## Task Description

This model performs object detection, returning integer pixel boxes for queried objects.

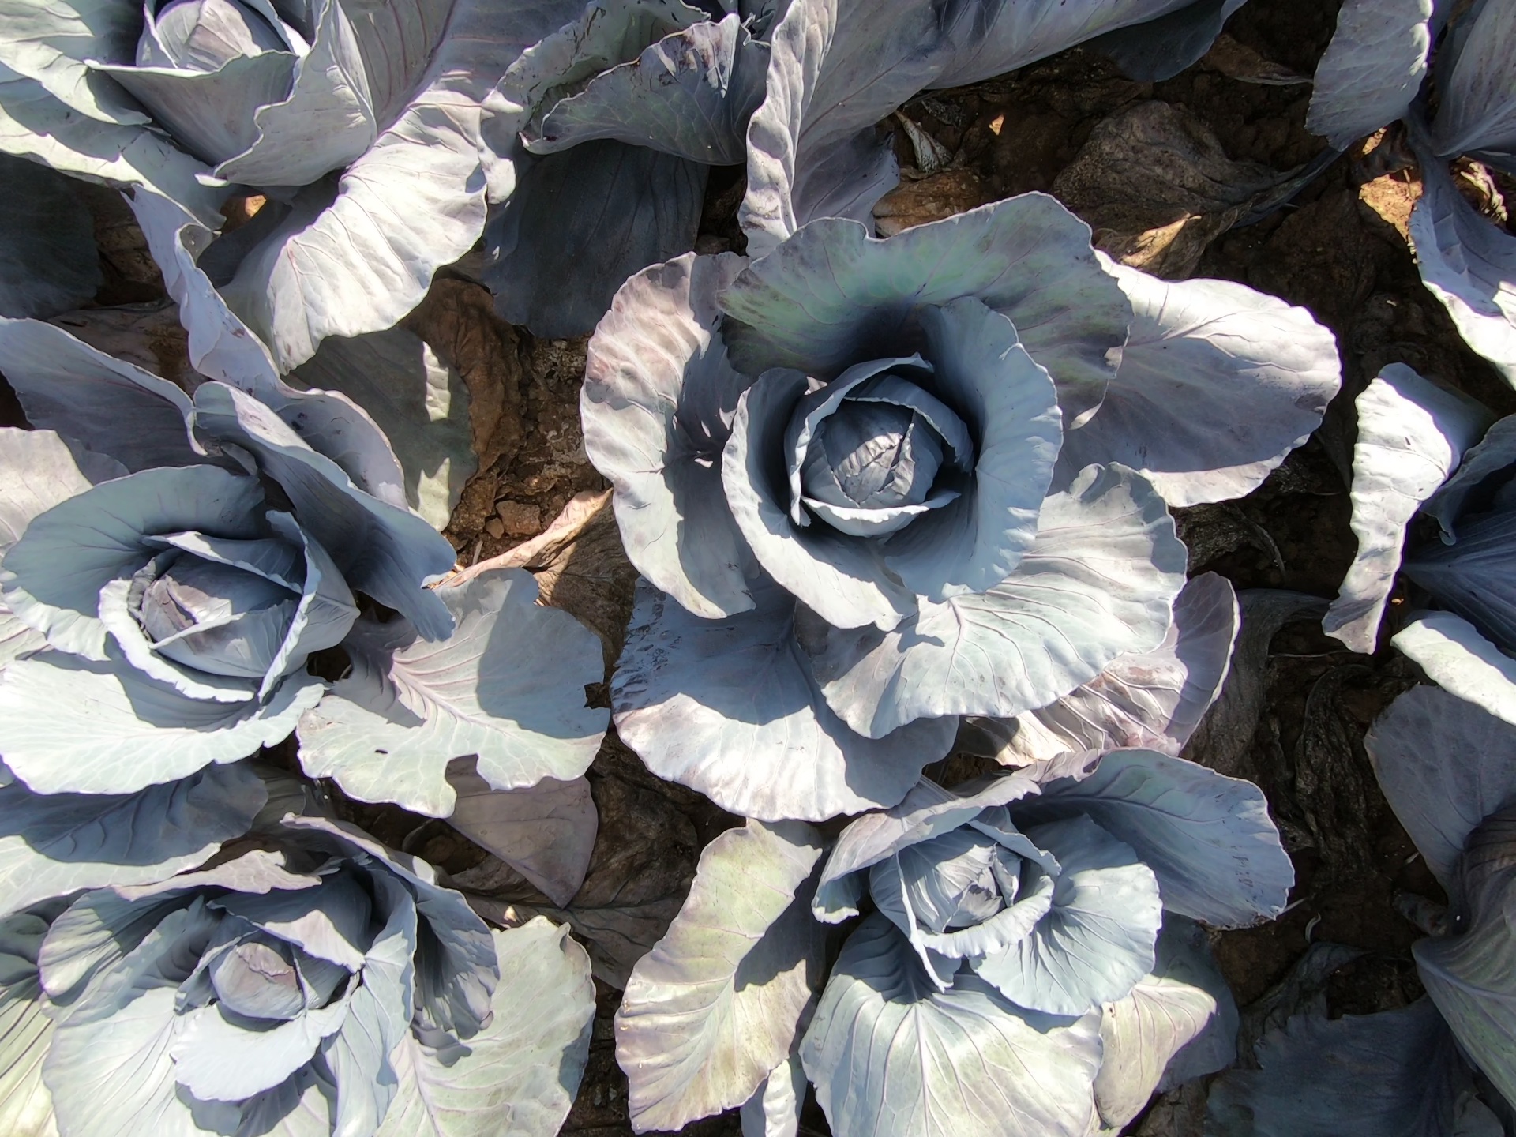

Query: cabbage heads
[141,4,296,159]
[878,806,1021,927]
[210,875,365,1018]
[799,387,941,537]
[141,547,306,680]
